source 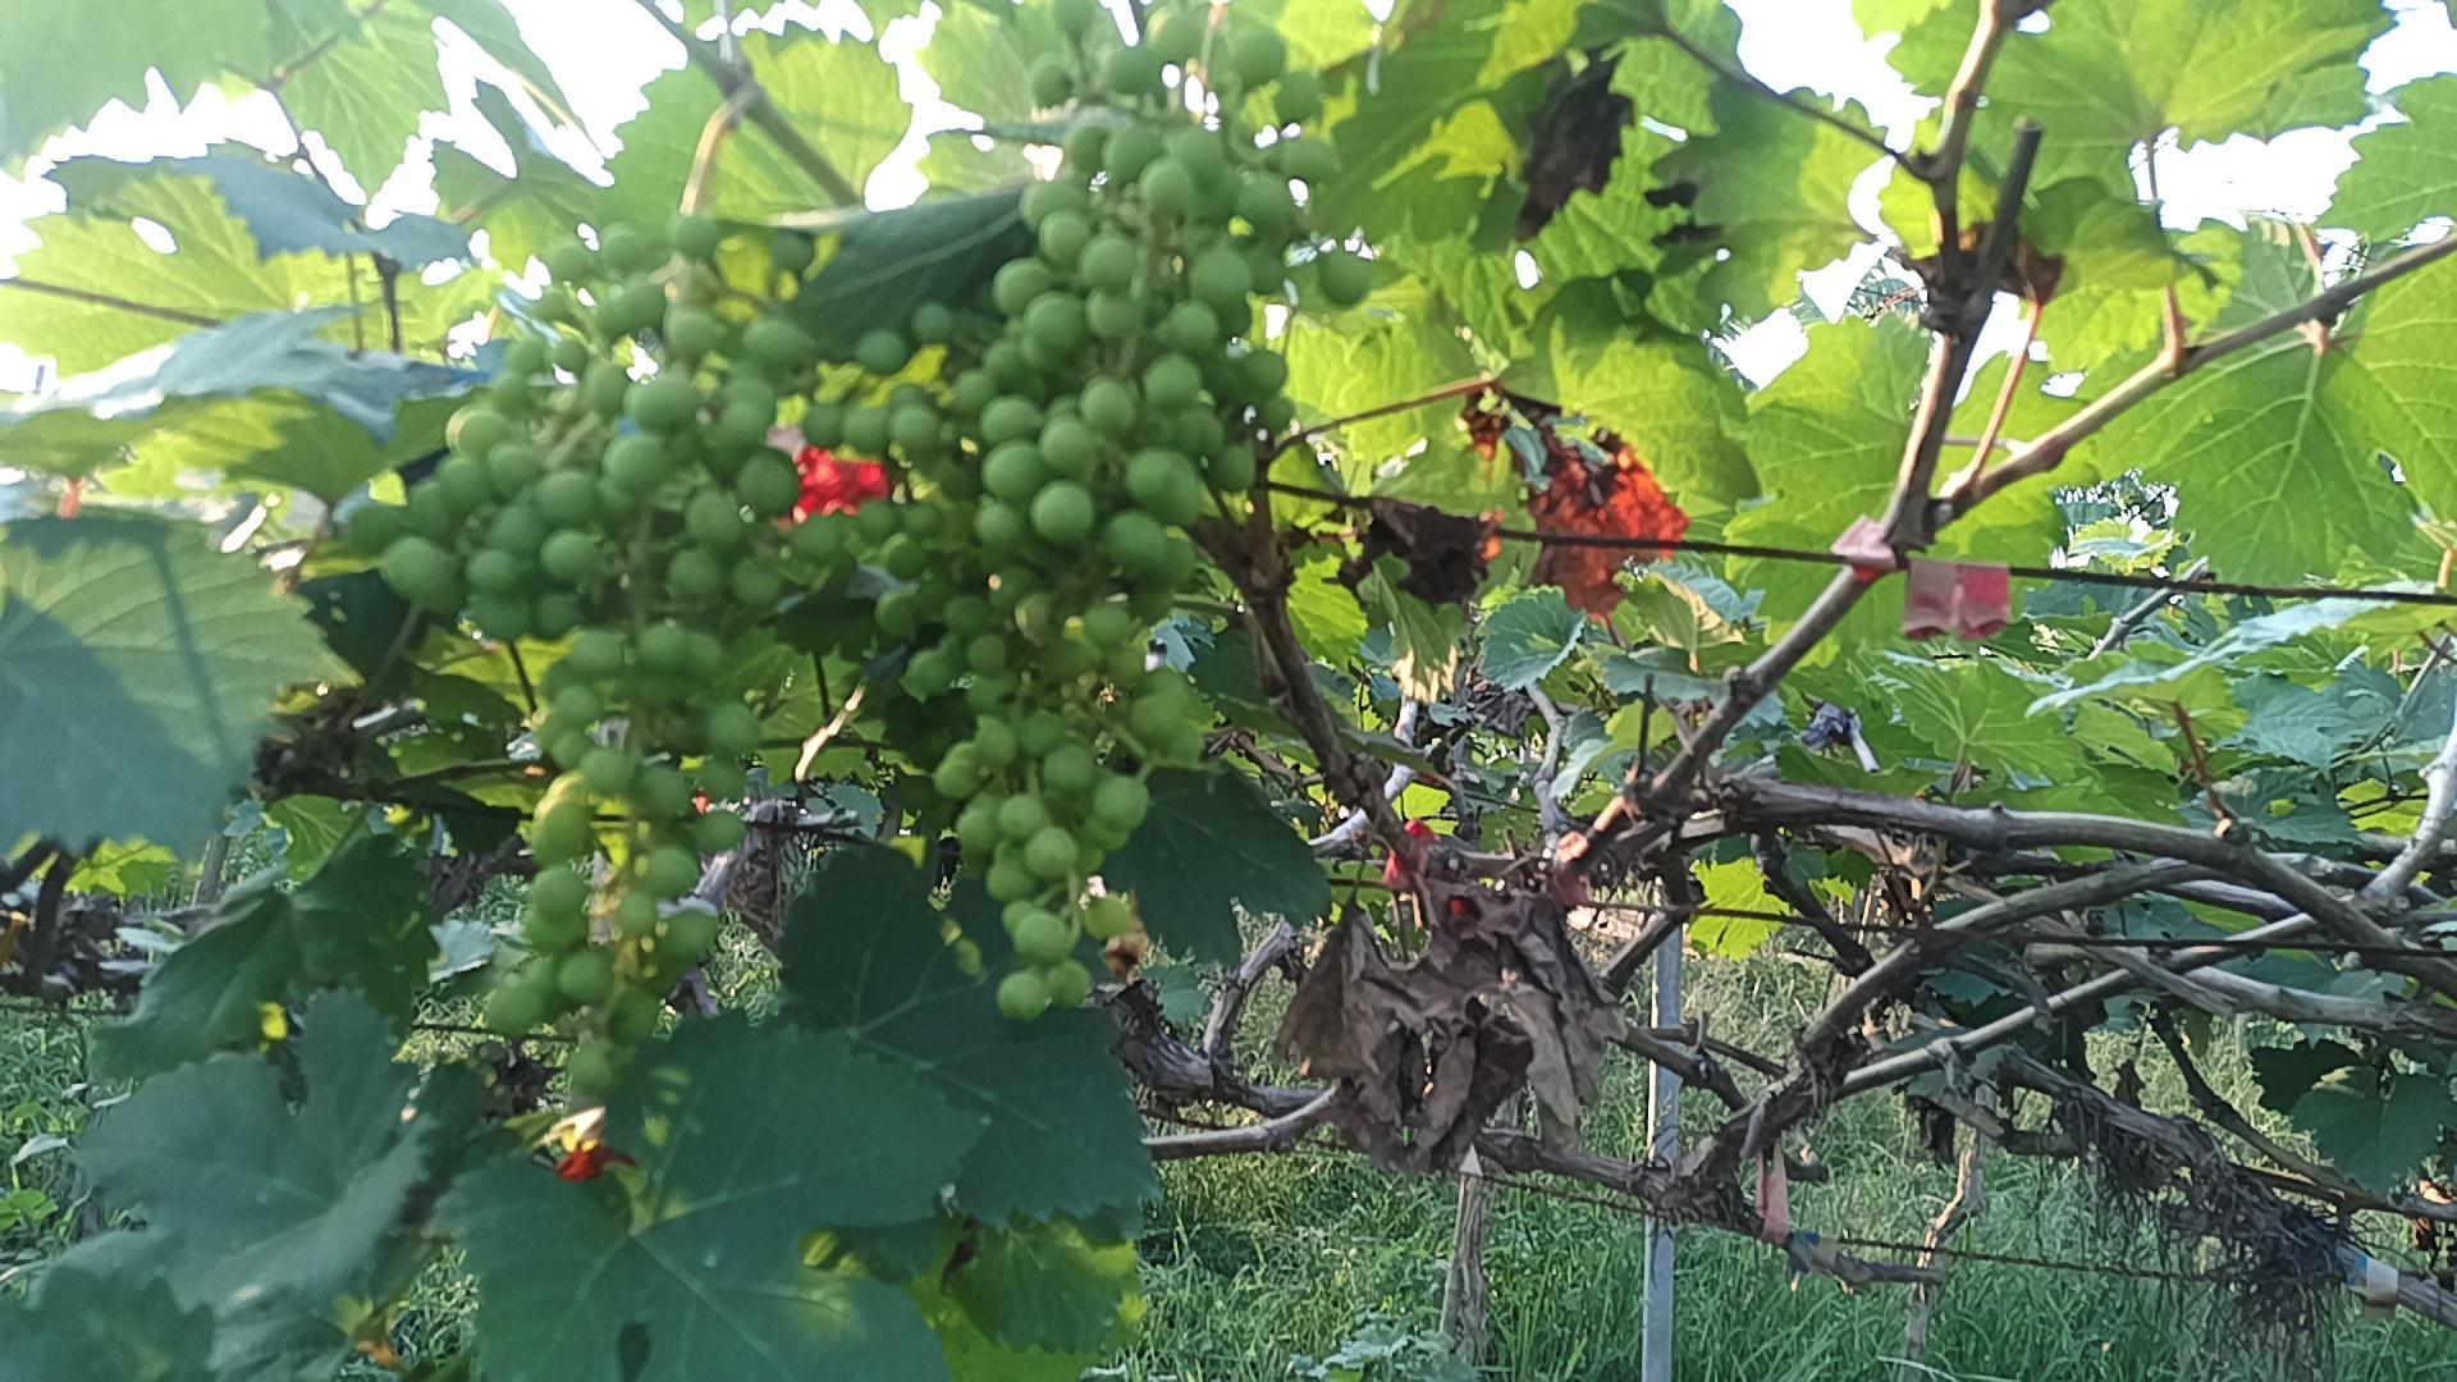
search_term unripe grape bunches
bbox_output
[790,303,1202,1017]
[340,211,816,1115]
[953,0,1369,590]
